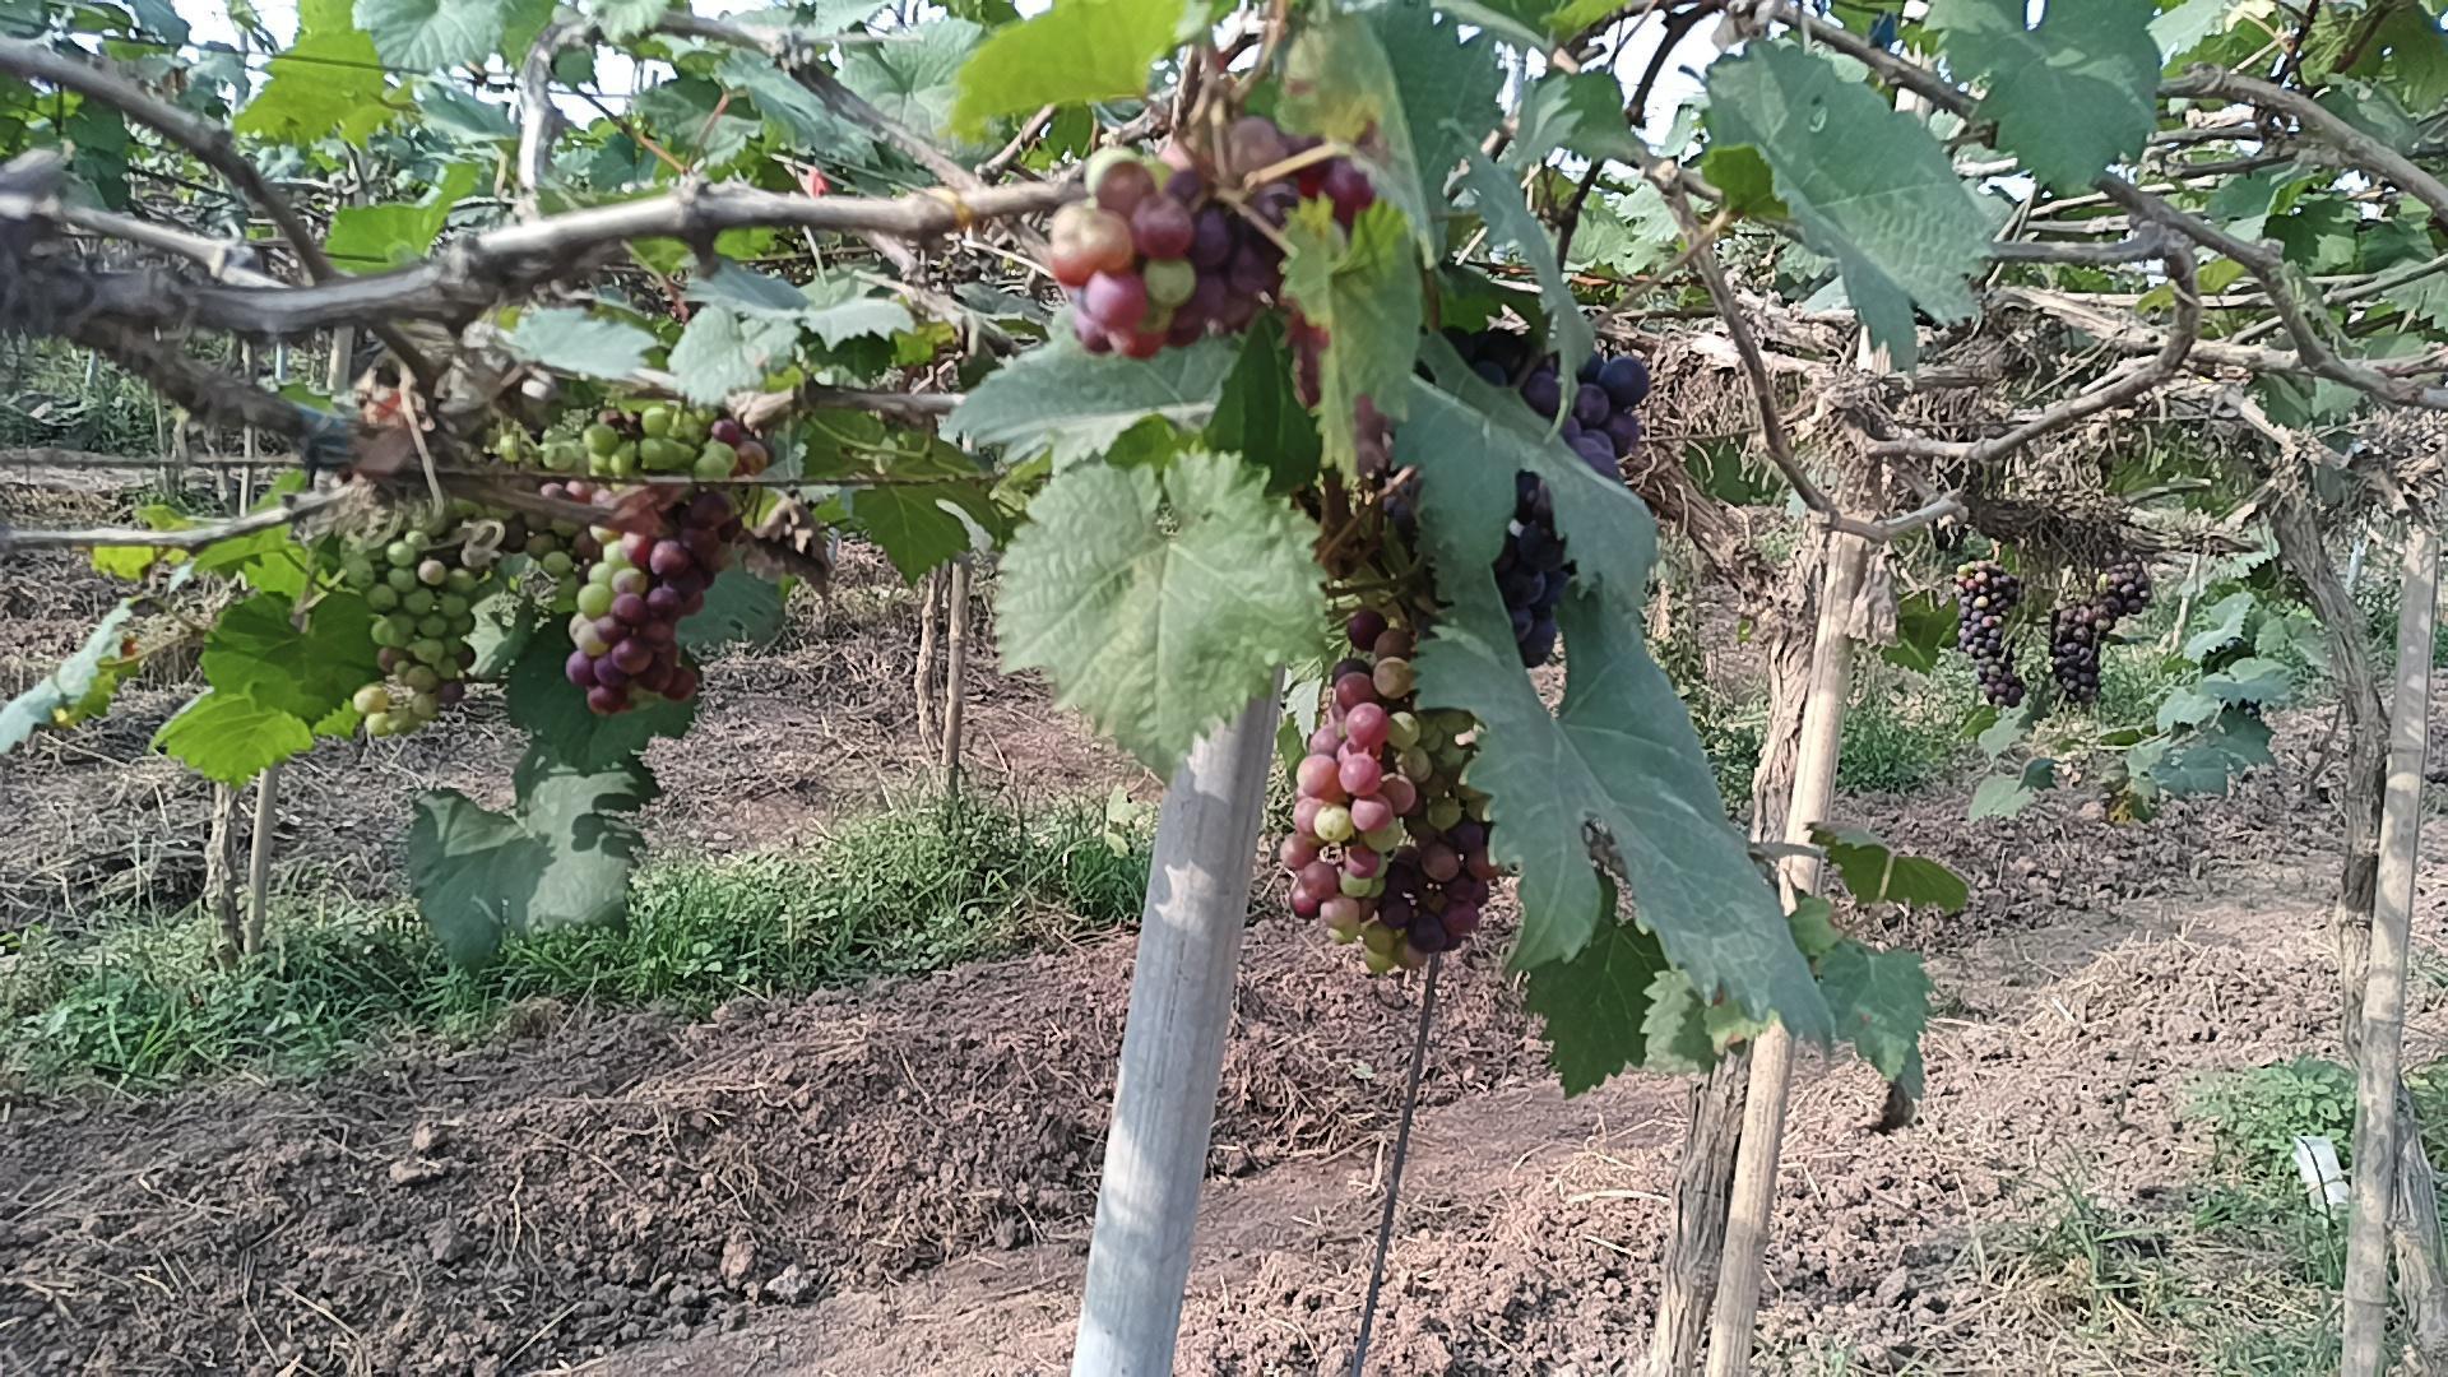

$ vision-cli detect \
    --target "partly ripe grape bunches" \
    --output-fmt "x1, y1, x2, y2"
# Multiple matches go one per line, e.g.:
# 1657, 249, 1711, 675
1363, 706, 1504, 972
1279, 609, 1432, 943
426, 423, 603, 599
344, 529, 478, 736
1045, 120, 1386, 361
566, 400, 779, 714
2049, 556, 2151, 705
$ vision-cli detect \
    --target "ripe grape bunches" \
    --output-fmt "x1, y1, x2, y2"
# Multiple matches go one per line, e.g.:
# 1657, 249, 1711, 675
1383, 325, 1655, 667
1955, 558, 2025, 708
